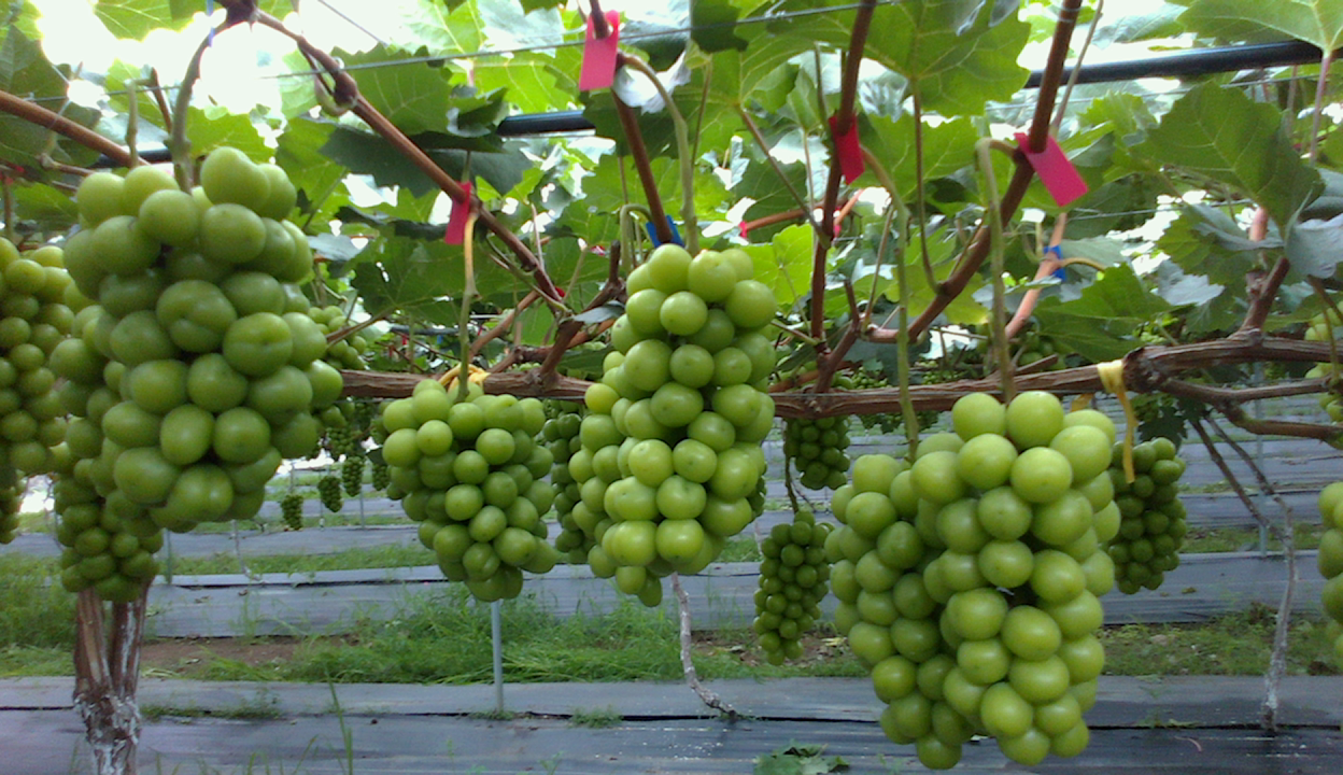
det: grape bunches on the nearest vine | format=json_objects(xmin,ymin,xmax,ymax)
[
  {"xmin": 381, "ymin": 376, "xmax": 559, "ymax": 601},
  {"xmin": 62, "ymin": 145, "xmax": 342, "ymax": 530},
  {"xmin": 1, "ymin": 238, "xmax": 75, "ymax": 488},
  {"xmin": 911, "ymin": 390, "xmax": 1121, "ymax": 765},
  {"xmin": 821, "ymin": 452, "xmax": 974, "ymax": 771},
  {"xmin": 568, "ymin": 241, "xmax": 775, "ymax": 609}
]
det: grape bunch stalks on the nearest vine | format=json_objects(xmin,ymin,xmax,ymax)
[
  {"xmin": 454, "ymin": 229, "xmax": 480, "ymax": 401},
  {"xmin": 977, "ymin": 140, "xmax": 1017, "ymax": 404},
  {"xmin": 632, "ymin": 58, "xmax": 698, "ymax": 252},
  {"xmin": 862, "ymin": 146, "xmax": 917, "ymax": 462},
  {"xmin": 2, "ymin": 183, "xmax": 10, "ymax": 236},
  {"xmin": 164, "ymin": 22, "xmax": 228, "ymax": 192}
]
